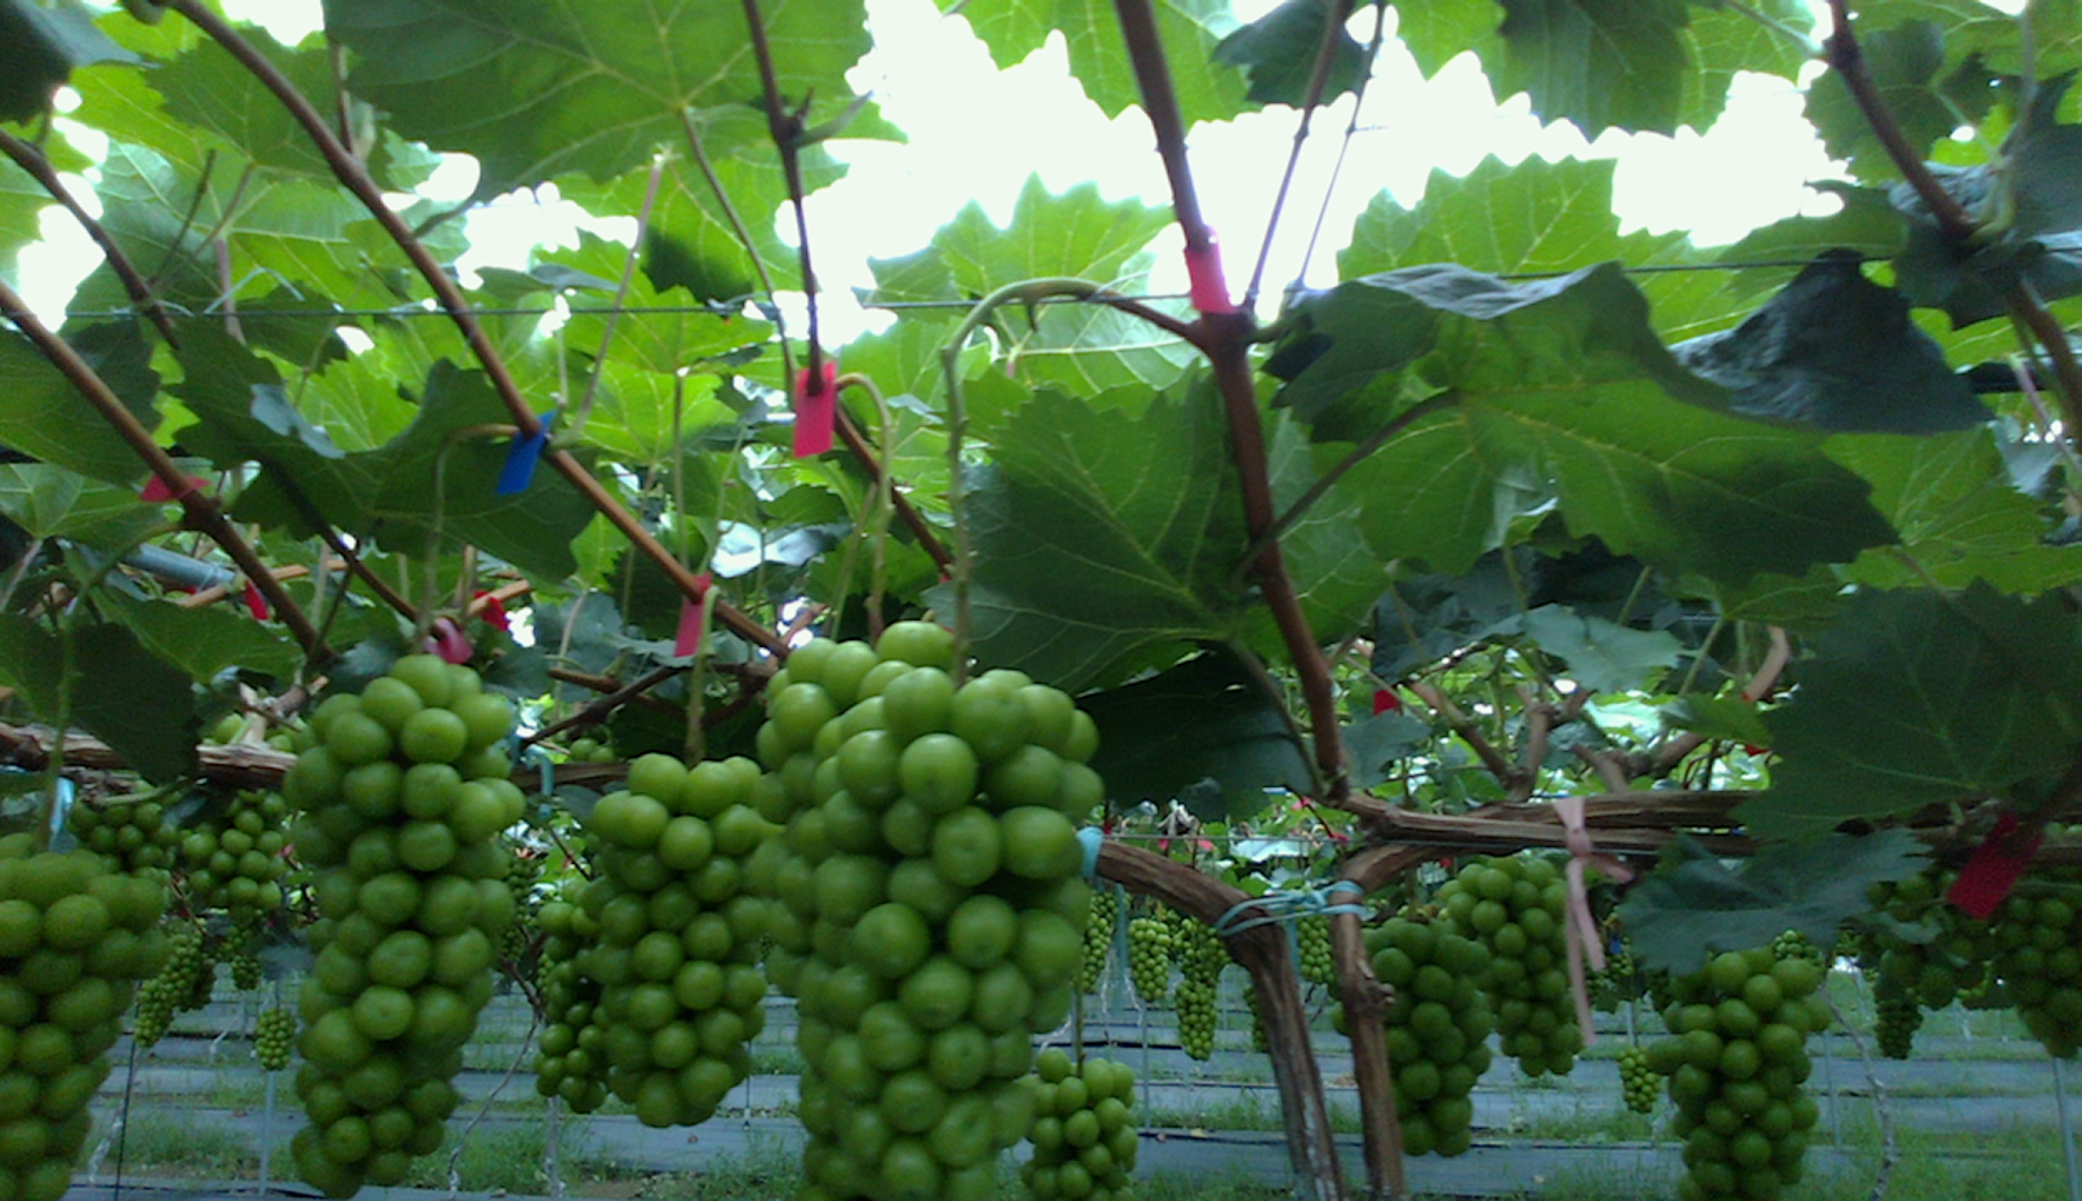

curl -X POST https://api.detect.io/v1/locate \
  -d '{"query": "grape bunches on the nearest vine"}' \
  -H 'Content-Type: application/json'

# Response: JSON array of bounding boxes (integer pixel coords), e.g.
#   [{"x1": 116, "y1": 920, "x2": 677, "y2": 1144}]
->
[
  {"x1": 577, "y1": 754, "x2": 786, "y2": 1129},
  {"x1": 796, "y1": 666, "x2": 1103, "y2": 1199},
  {"x1": 0, "y1": 832, "x2": 170, "y2": 1199},
  {"x1": 285, "y1": 654, "x2": 526, "y2": 1198},
  {"x1": 754, "y1": 621, "x2": 958, "y2": 996}
]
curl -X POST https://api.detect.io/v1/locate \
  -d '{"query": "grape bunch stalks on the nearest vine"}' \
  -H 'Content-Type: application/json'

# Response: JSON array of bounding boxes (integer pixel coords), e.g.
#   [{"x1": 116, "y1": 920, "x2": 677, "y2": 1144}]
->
[
  {"x1": 686, "y1": 585, "x2": 717, "y2": 771},
  {"x1": 834, "y1": 370, "x2": 893, "y2": 651},
  {"x1": 30, "y1": 517, "x2": 182, "y2": 856},
  {"x1": 938, "y1": 277, "x2": 1211, "y2": 684},
  {"x1": 409, "y1": 422, "x2": 515, "y2": 657}
]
